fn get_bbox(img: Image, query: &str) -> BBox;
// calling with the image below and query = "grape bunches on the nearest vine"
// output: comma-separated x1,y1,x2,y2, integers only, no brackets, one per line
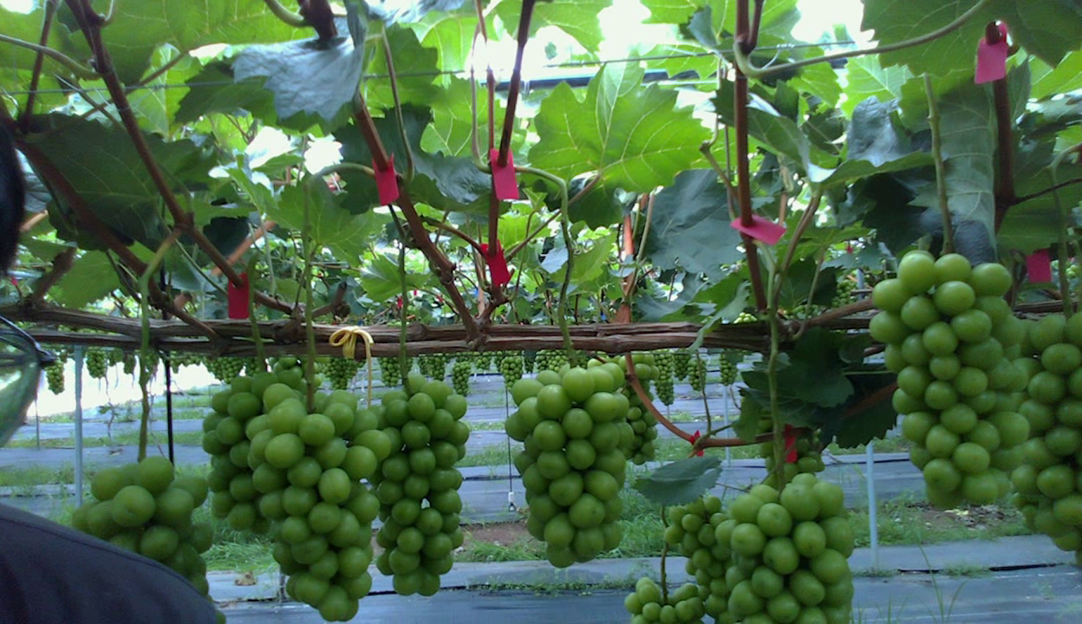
249,382,389,621
505,362,635,569
200,370,303,533
1010,312,1081,552
716,471,855,623
368,374,468,597
73,456,225,623
870,249,1029,509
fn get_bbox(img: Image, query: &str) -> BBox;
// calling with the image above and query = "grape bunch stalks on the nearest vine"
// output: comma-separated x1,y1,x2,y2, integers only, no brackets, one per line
138,244,170,459
303,161,373,412
249,252,264,370
1042,146,1078,315
759,242,784,490
399,231,410,393
527,166,578,366
924,72,954,253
